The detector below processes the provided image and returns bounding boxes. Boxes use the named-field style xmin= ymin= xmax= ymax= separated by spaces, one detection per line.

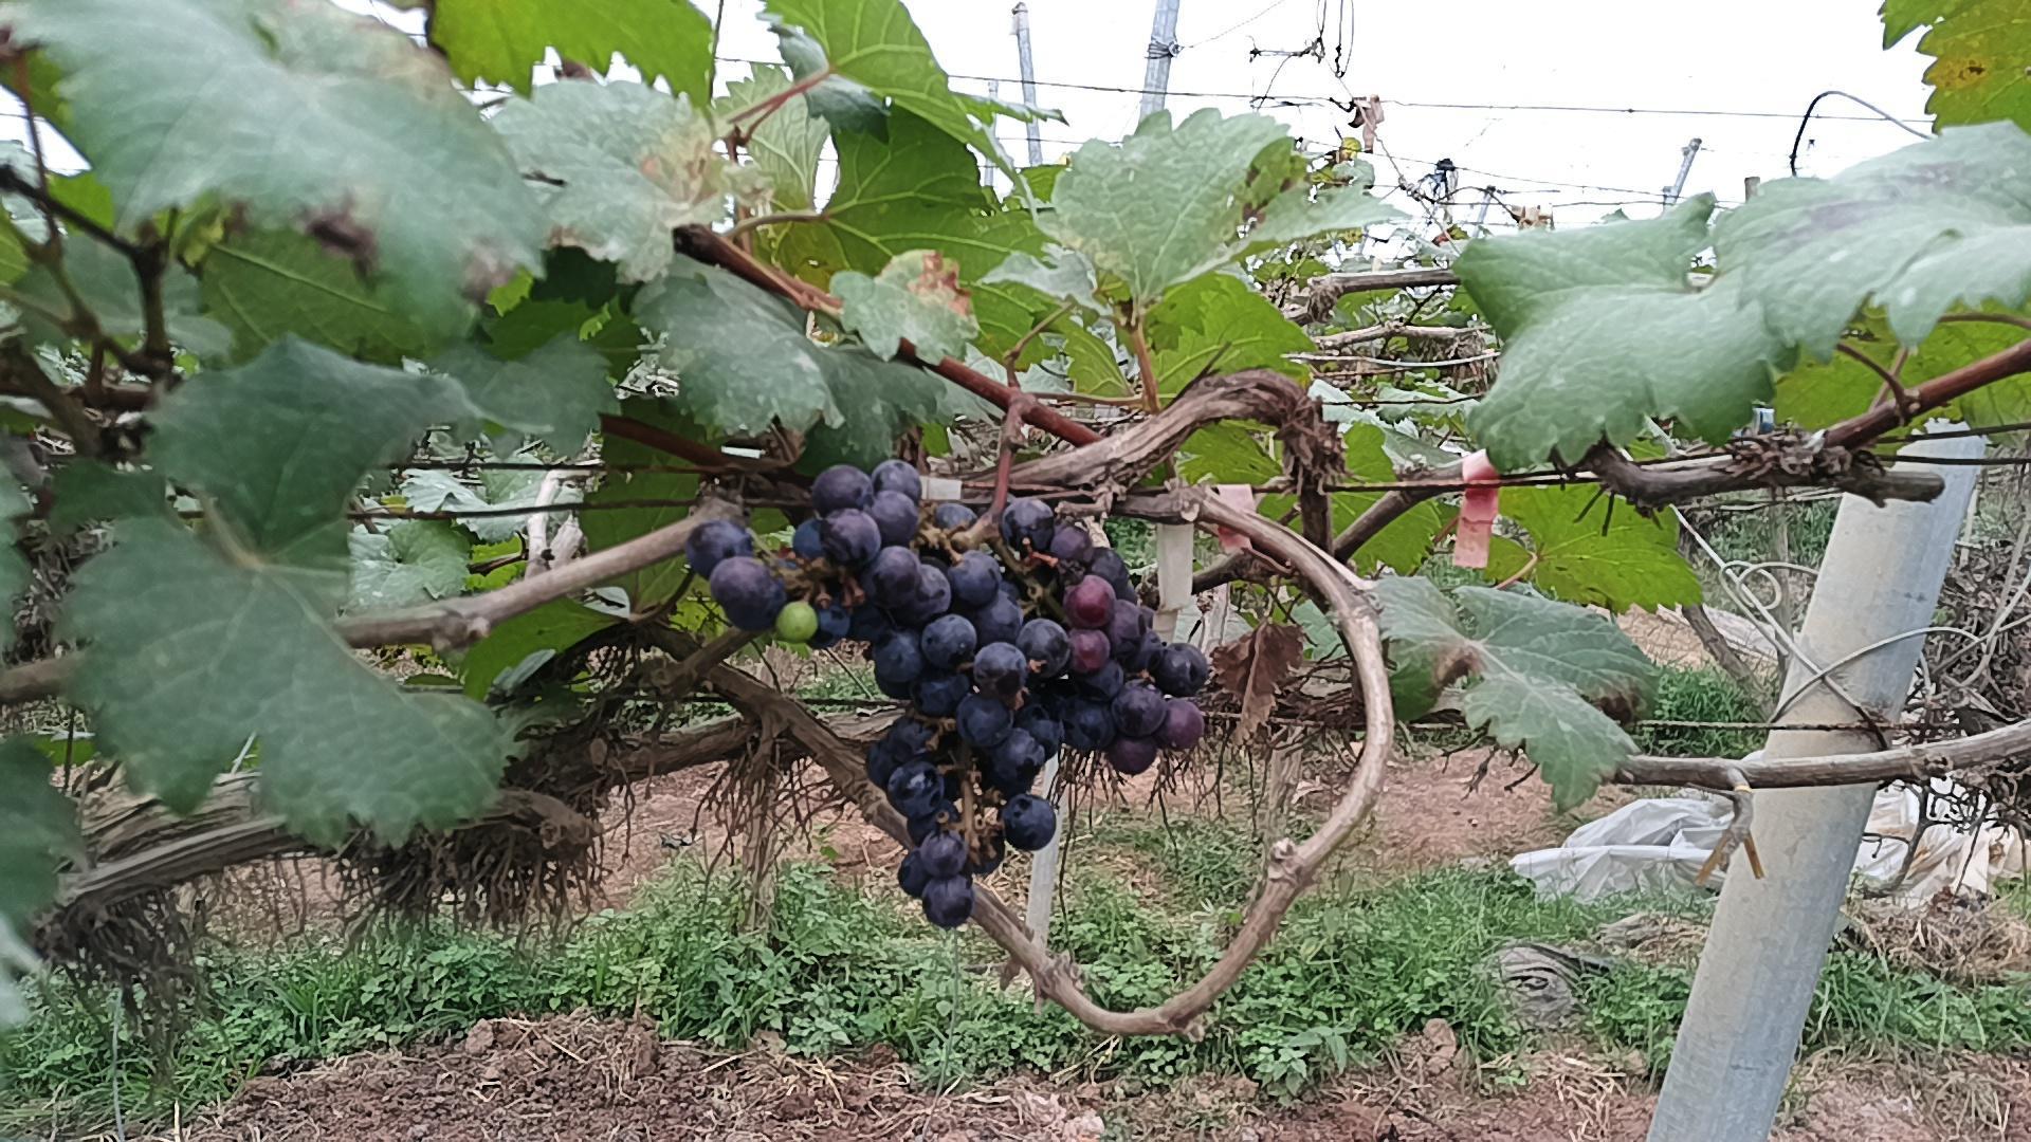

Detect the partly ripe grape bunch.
xmin=687 ymin=460 xmax=1208 ymax=926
